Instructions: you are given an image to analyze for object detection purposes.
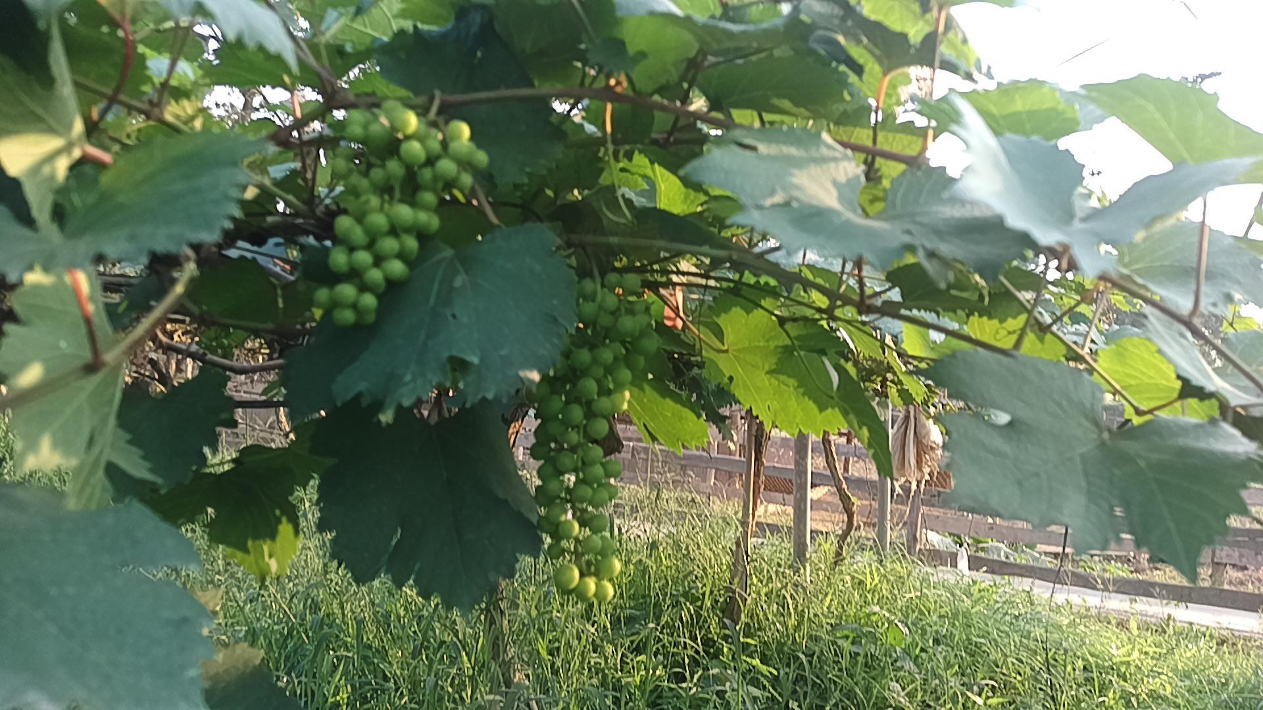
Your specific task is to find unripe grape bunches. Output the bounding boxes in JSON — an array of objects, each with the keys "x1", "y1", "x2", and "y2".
[
  {"x1": 530, "y1": 275, "x2": 659, "y2": 602},
  {"x1": 313, "y1": 101, "x2": 488, "y2": 325}
]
